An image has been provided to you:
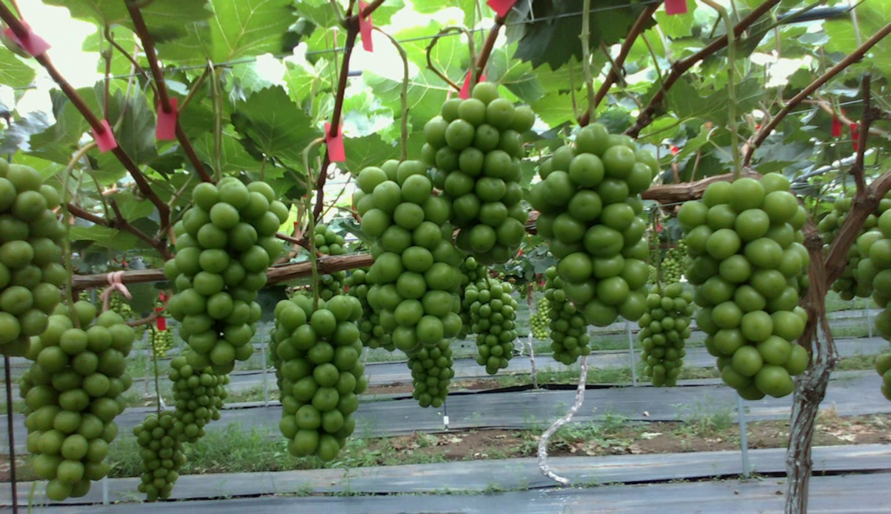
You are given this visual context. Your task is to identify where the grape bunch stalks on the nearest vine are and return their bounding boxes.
[425,26,478,96]
[176,61,223,181]
[302,136,326,311]
[61,143,96,329]
[700,1,741,180]
[578,0,596,123]
[374,26,410,163]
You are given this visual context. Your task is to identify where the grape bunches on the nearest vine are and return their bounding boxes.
[22,301,136,502]
[273,294,366,463]
[351,160,464,352]
[162,177,288,375]
[678,173,810,401]
[421,81,535,266]
[0,156,66,357]
[530,123,660,328]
